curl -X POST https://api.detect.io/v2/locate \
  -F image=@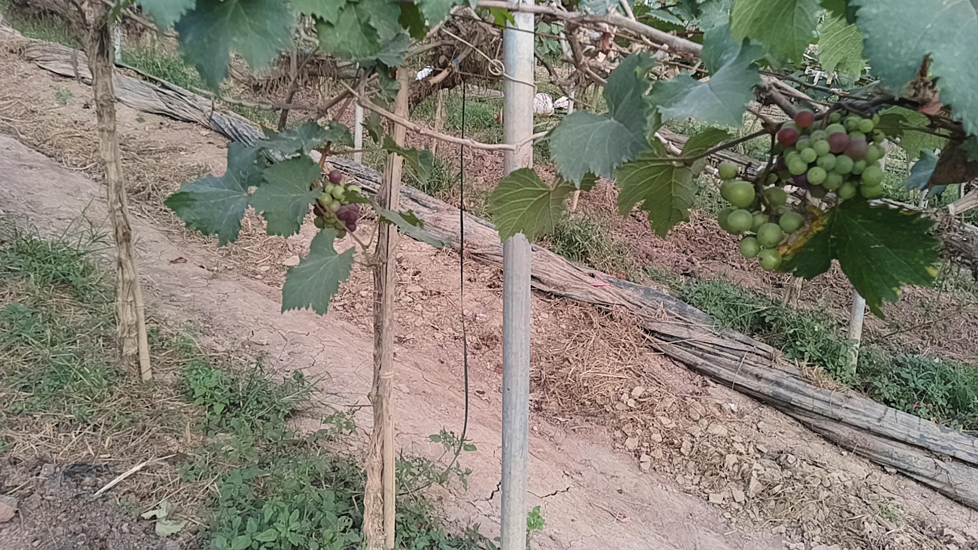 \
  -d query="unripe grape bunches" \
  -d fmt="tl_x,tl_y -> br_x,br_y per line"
719,110 -> 886,271
313,170 -> 362,238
